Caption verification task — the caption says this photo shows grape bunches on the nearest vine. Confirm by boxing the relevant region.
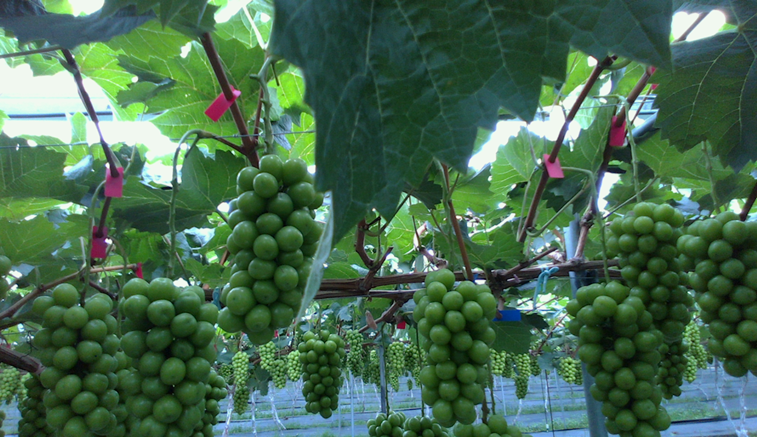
[119,277,219,436]
[217,155,323,345]
[454,415,528,436]
[676,211,756,377]
[413,268,497,429]
[565,283,670,436]
[608,202,693,339]
[32,283,121,436]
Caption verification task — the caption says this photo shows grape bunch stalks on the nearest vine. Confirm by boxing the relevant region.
[701,141,721,213]
[80,180,105,307]
[561,167,611,283]
[618,96,641,203]
[435,161,456,270]
[482,398,490,423]
[168,129,245,277]
[249,55,275,155]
